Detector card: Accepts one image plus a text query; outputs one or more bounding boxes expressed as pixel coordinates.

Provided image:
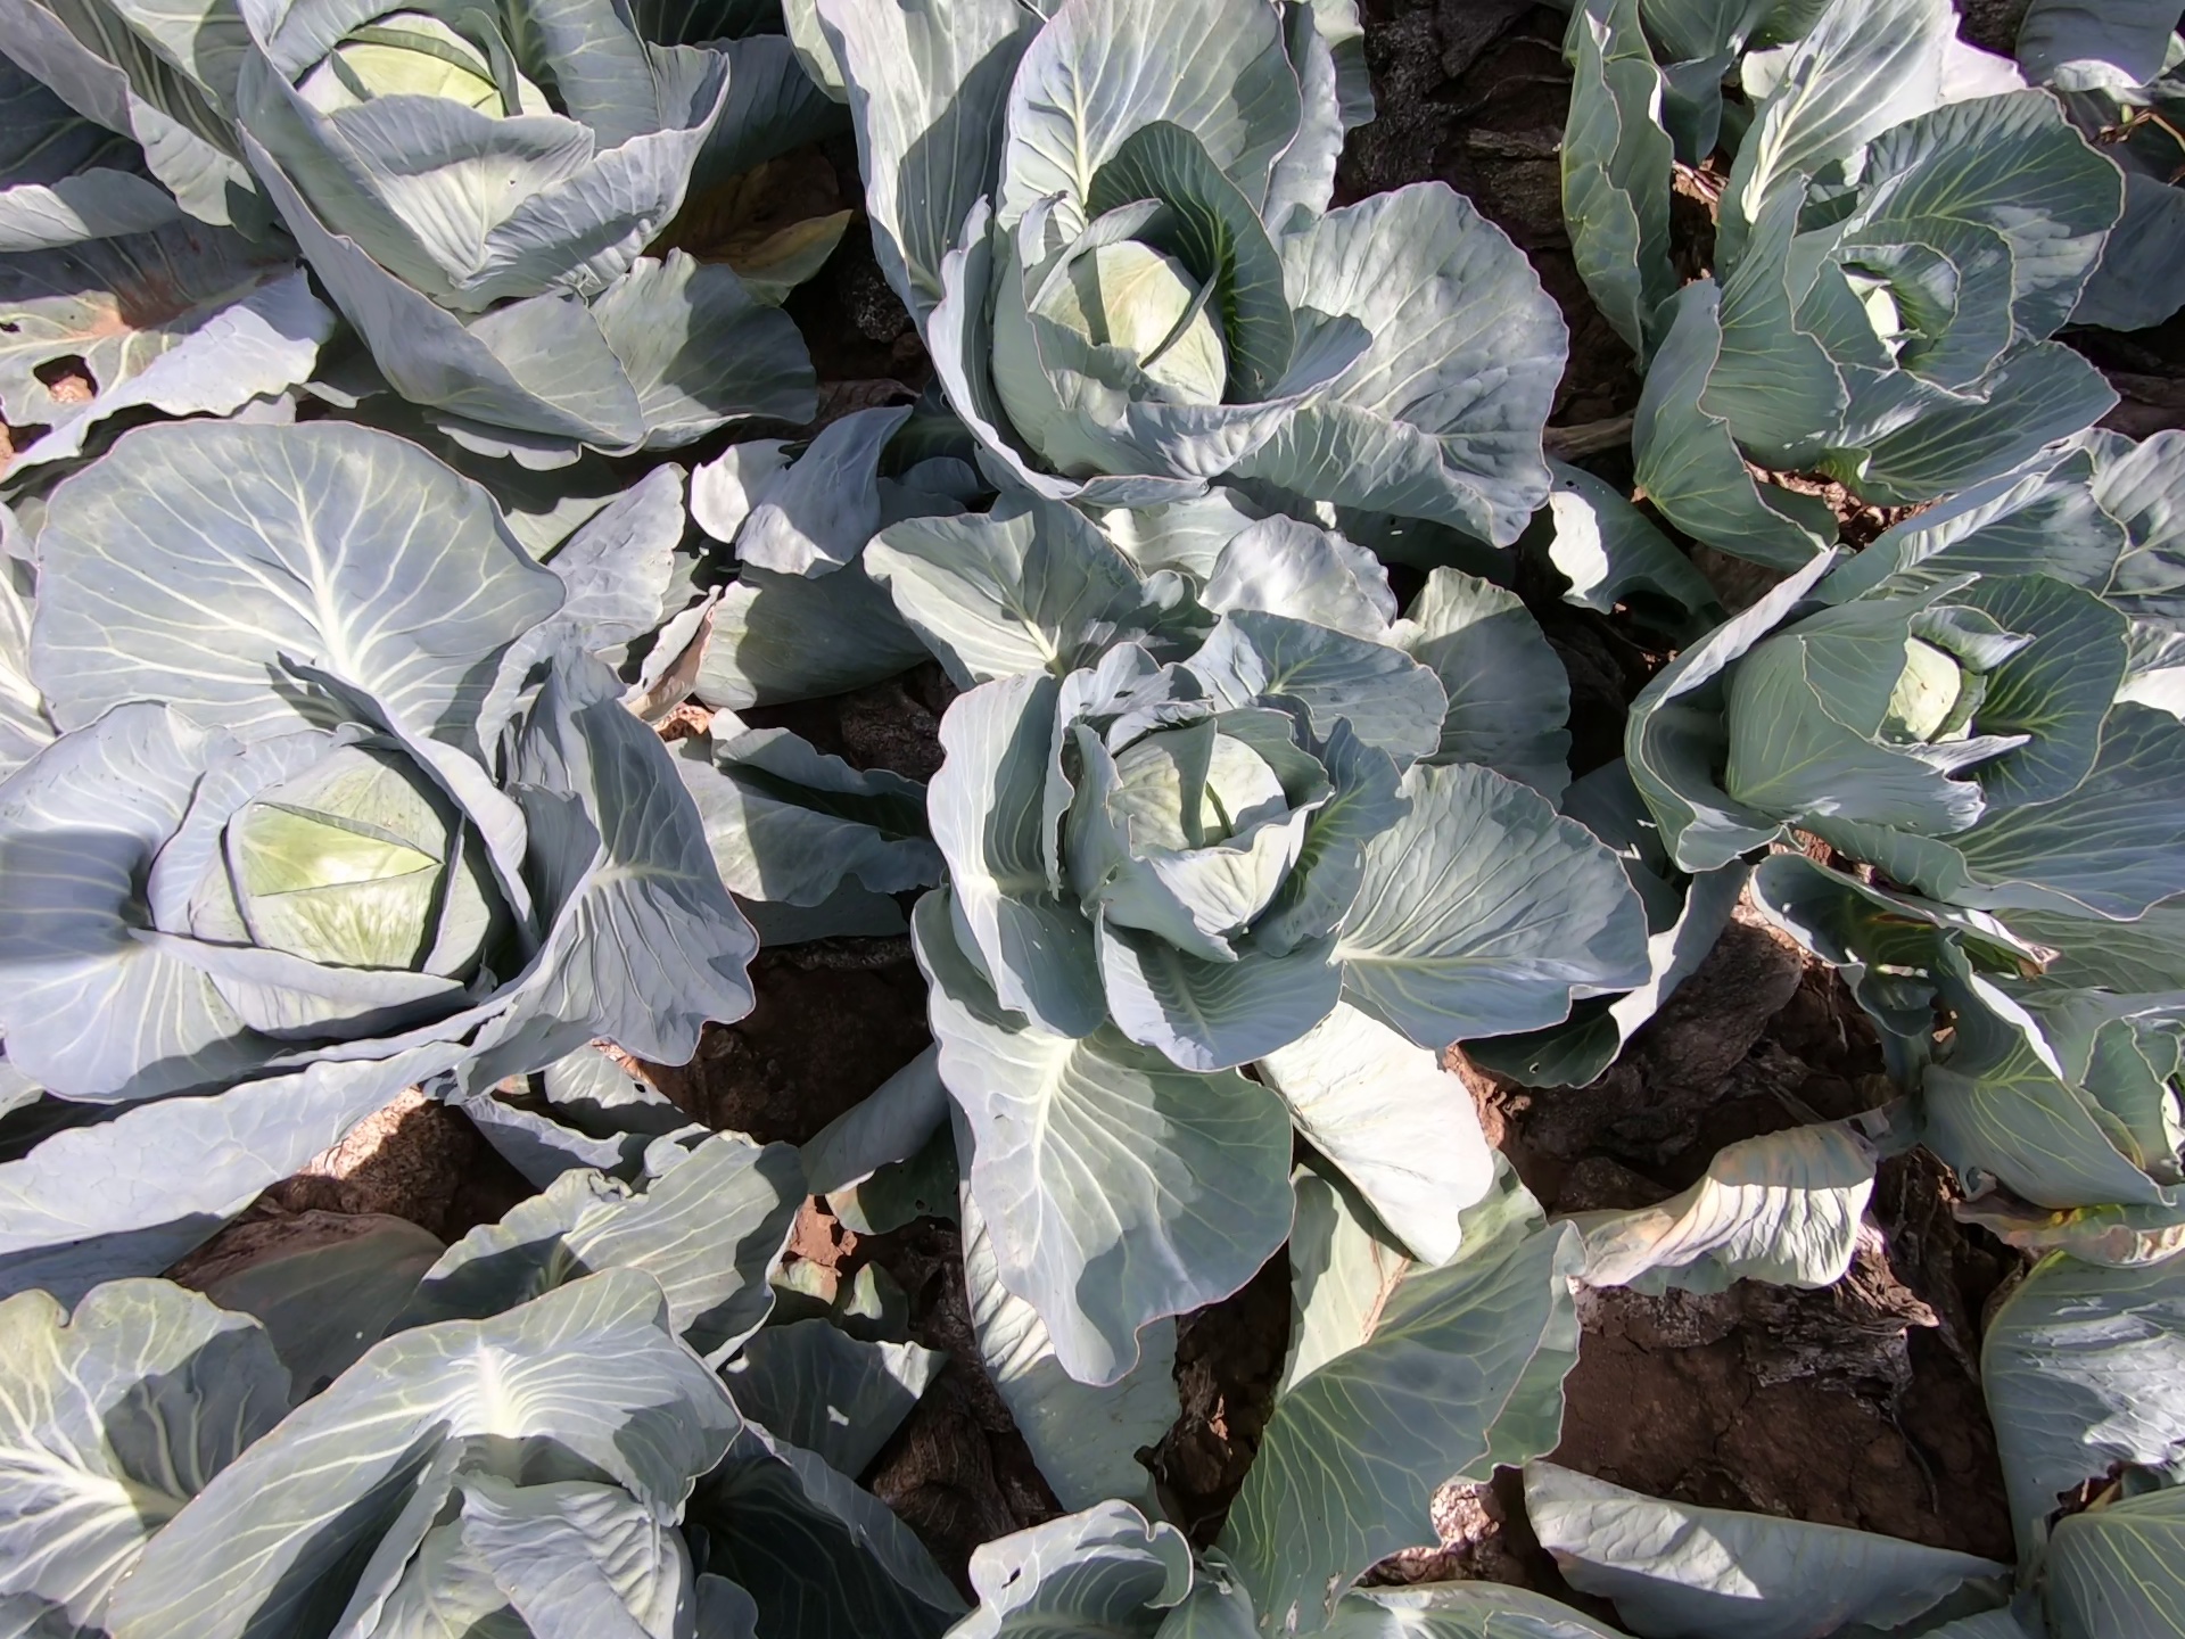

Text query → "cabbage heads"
[185,747,508,1036]
[1775,608,1980,790]
[1768,263,1905,394]
[993,237,1228,470]
[252,2,562,286]
[1993,1040,2182,1181]
[1069,725,1300,940]
[349,1483,696,1636]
